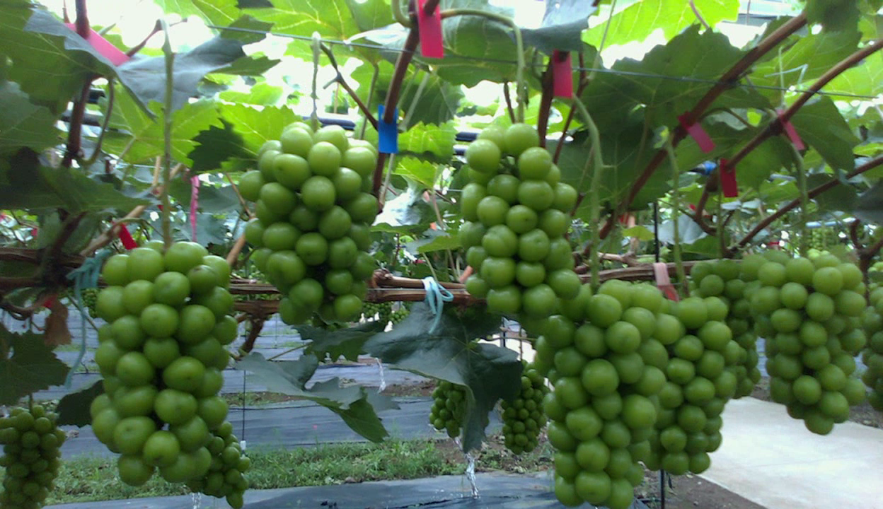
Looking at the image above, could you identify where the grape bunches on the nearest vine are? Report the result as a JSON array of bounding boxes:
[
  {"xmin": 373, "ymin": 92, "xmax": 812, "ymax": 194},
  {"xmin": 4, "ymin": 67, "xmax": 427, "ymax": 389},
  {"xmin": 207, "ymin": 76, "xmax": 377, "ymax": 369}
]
[
  {"xmin": 688, "ymin": 259, "xmax": 763, "ymax": 399},
  {"xmin": 459, "ymin": 123, "xmax": 582, "ymax": 337},
  {"xmin": 739, "ymin": 250, "xmax": 867, "ymax": 436},
  {"xmin": 237, "ymin": 122, "xmax": 378, "ymax": 325},
  {"xmin": 532, "ymin": 279, "xmax": 680, "ymax": 508},
  {"xmin": 88, "ymin": 240, "xmax": 238, "ymax": 486},
  {"xmin": 643, "ymin": 296, "xmax": 742, "ymax": 476}
]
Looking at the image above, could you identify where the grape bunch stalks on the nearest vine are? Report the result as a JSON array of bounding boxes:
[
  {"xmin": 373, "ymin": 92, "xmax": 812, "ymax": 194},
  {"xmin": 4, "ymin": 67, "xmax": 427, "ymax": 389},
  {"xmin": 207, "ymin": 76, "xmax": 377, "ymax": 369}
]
[
  {"xmin": 310, "ymin": 32, "xmax": 320, "ymax": 132},
  {"xmin": 776, "ymin": 134, "xmax": 809, "ymax": 257},
  {"xmin": 665, "ymin": 144, "xmax": 690, "ymax": 298},
  {"xmin": 715, "ymin": 175, "xmax": 725, "ymax": 259},
  {"xmin": 441, "ymin": 7, "xmax": 526, "ymax": 122},
  {"xmin": 128, "ymin": 18, "xmax": 175, "ymax": 252},
  {"xmin": 570, "ymin": 93, "xmax": 603, "ymax": 294}
]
